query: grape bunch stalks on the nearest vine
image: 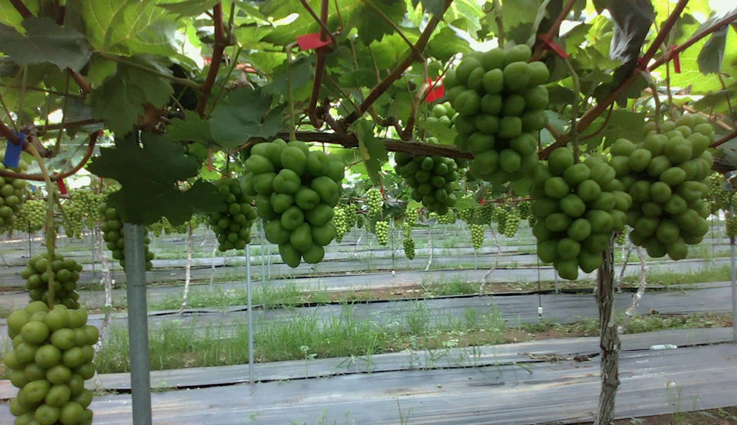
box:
[492,0,504,50]
[645,68,662,133]
[560,57,581,164]
[286,41,299,141]
[26,142,55,309]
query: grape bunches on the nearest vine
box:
[609,112,716,260]
[239,138,345,268]
[529,146,633,280]
[441,43,550,186]
[4,300,99,424]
